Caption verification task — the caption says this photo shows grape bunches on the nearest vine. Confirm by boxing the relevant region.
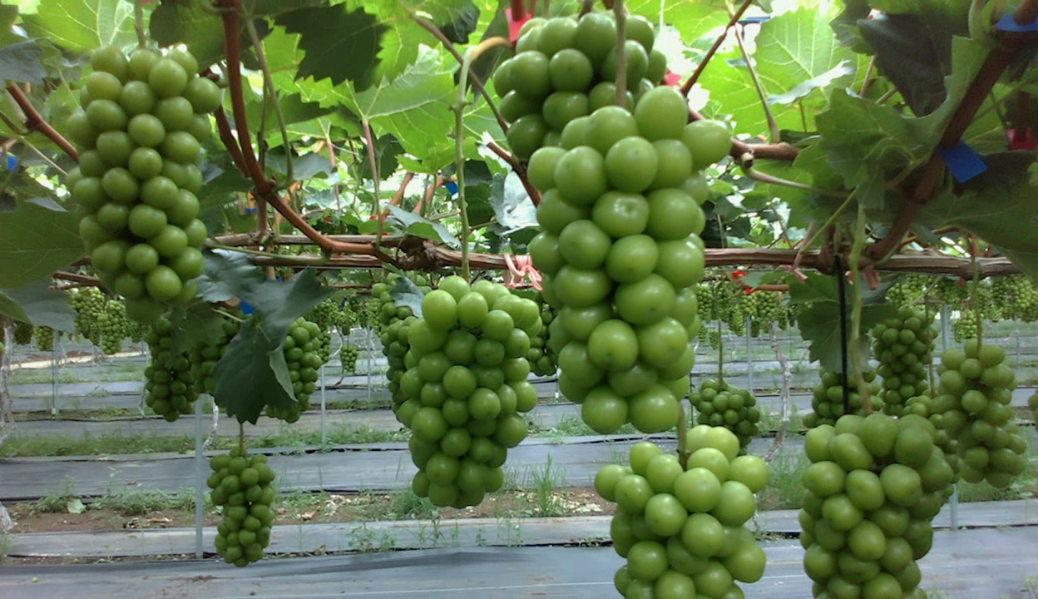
[399,275,542,509]
[798,413,954,598]
[528,87,732,434]
[493,10,666,157]
[594,425,769,598]
[65,46,220,322]
[935,339,1027,488]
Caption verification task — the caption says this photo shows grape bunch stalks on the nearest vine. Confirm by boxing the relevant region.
[678,402,689,471]
[577,1,594,19]
[454,37,515,285]
[134,0,146,49]
[850,212,872,416]
[972,266,985,344]
[614,0,627,109]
